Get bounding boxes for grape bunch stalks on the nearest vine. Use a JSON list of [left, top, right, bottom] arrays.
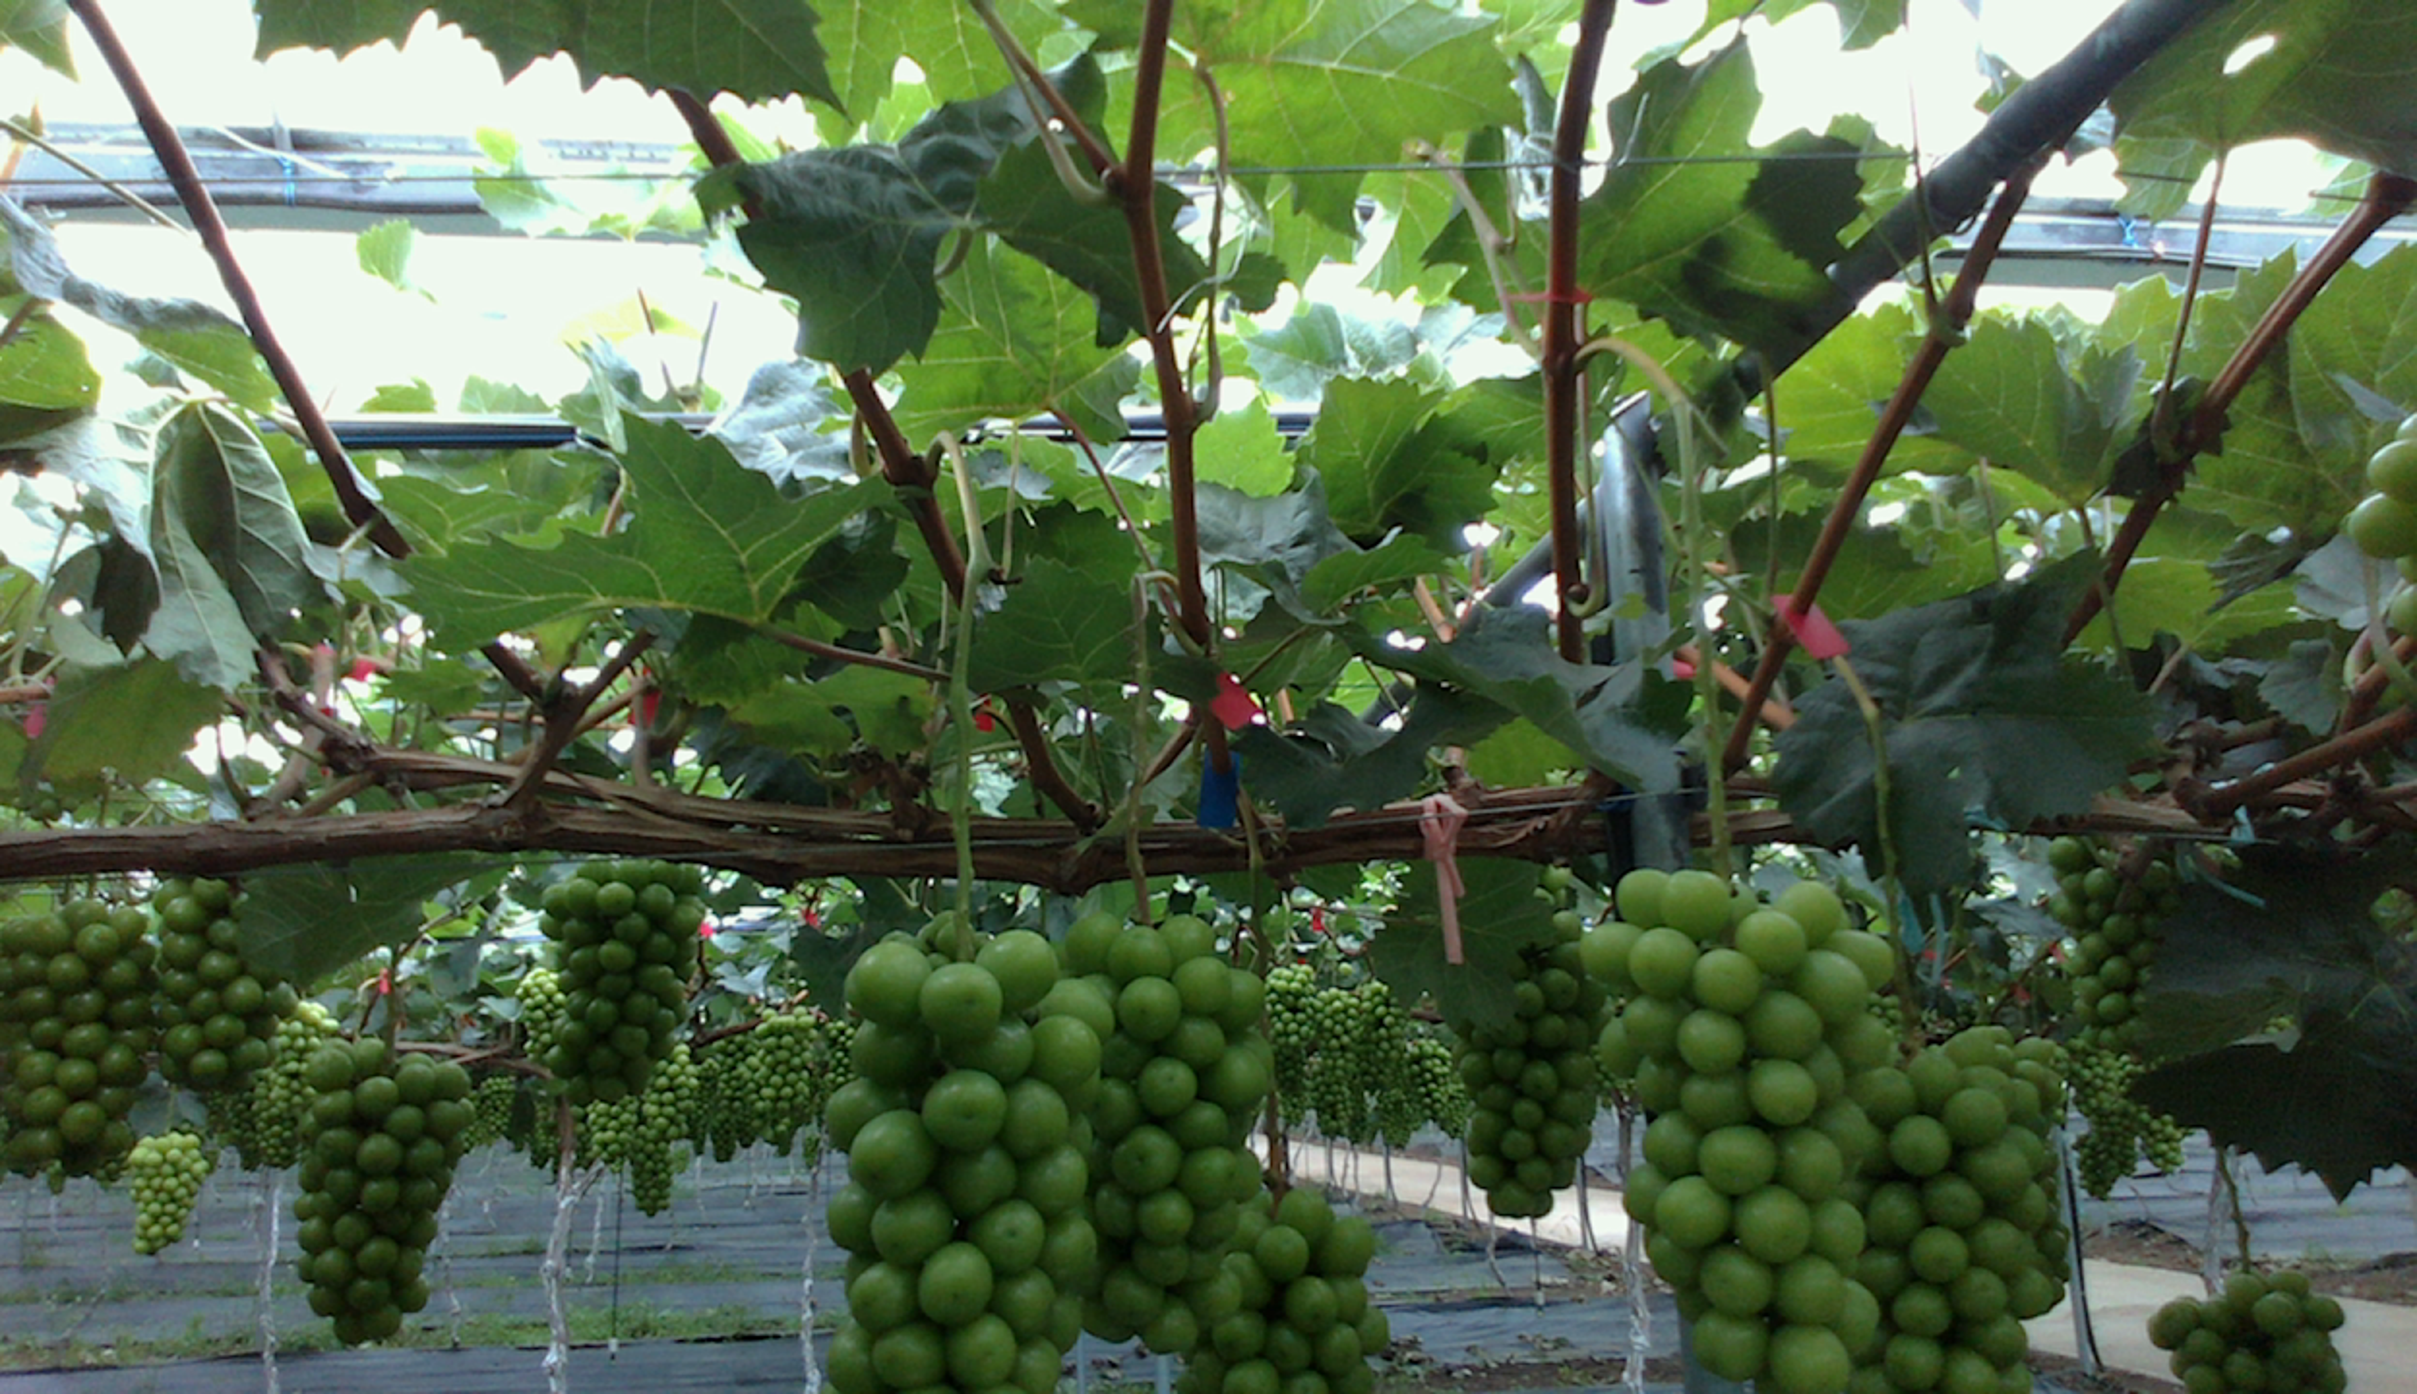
[[1125, 569, 1166, 925], [1239, 796, 1286, 1210], [1590, 339, 1731, 881], [1834, 658, 1919, 1051], [939, 434, 1005, 960]]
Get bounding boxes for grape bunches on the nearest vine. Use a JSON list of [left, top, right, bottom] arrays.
[[819, 914, 1116, 1392], [1580, 869, 1892, 1392], [1054, 914, 1270, 1355], [1174, 1185, 1391, 1392], [1846, 1030, 2061, 1392]]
